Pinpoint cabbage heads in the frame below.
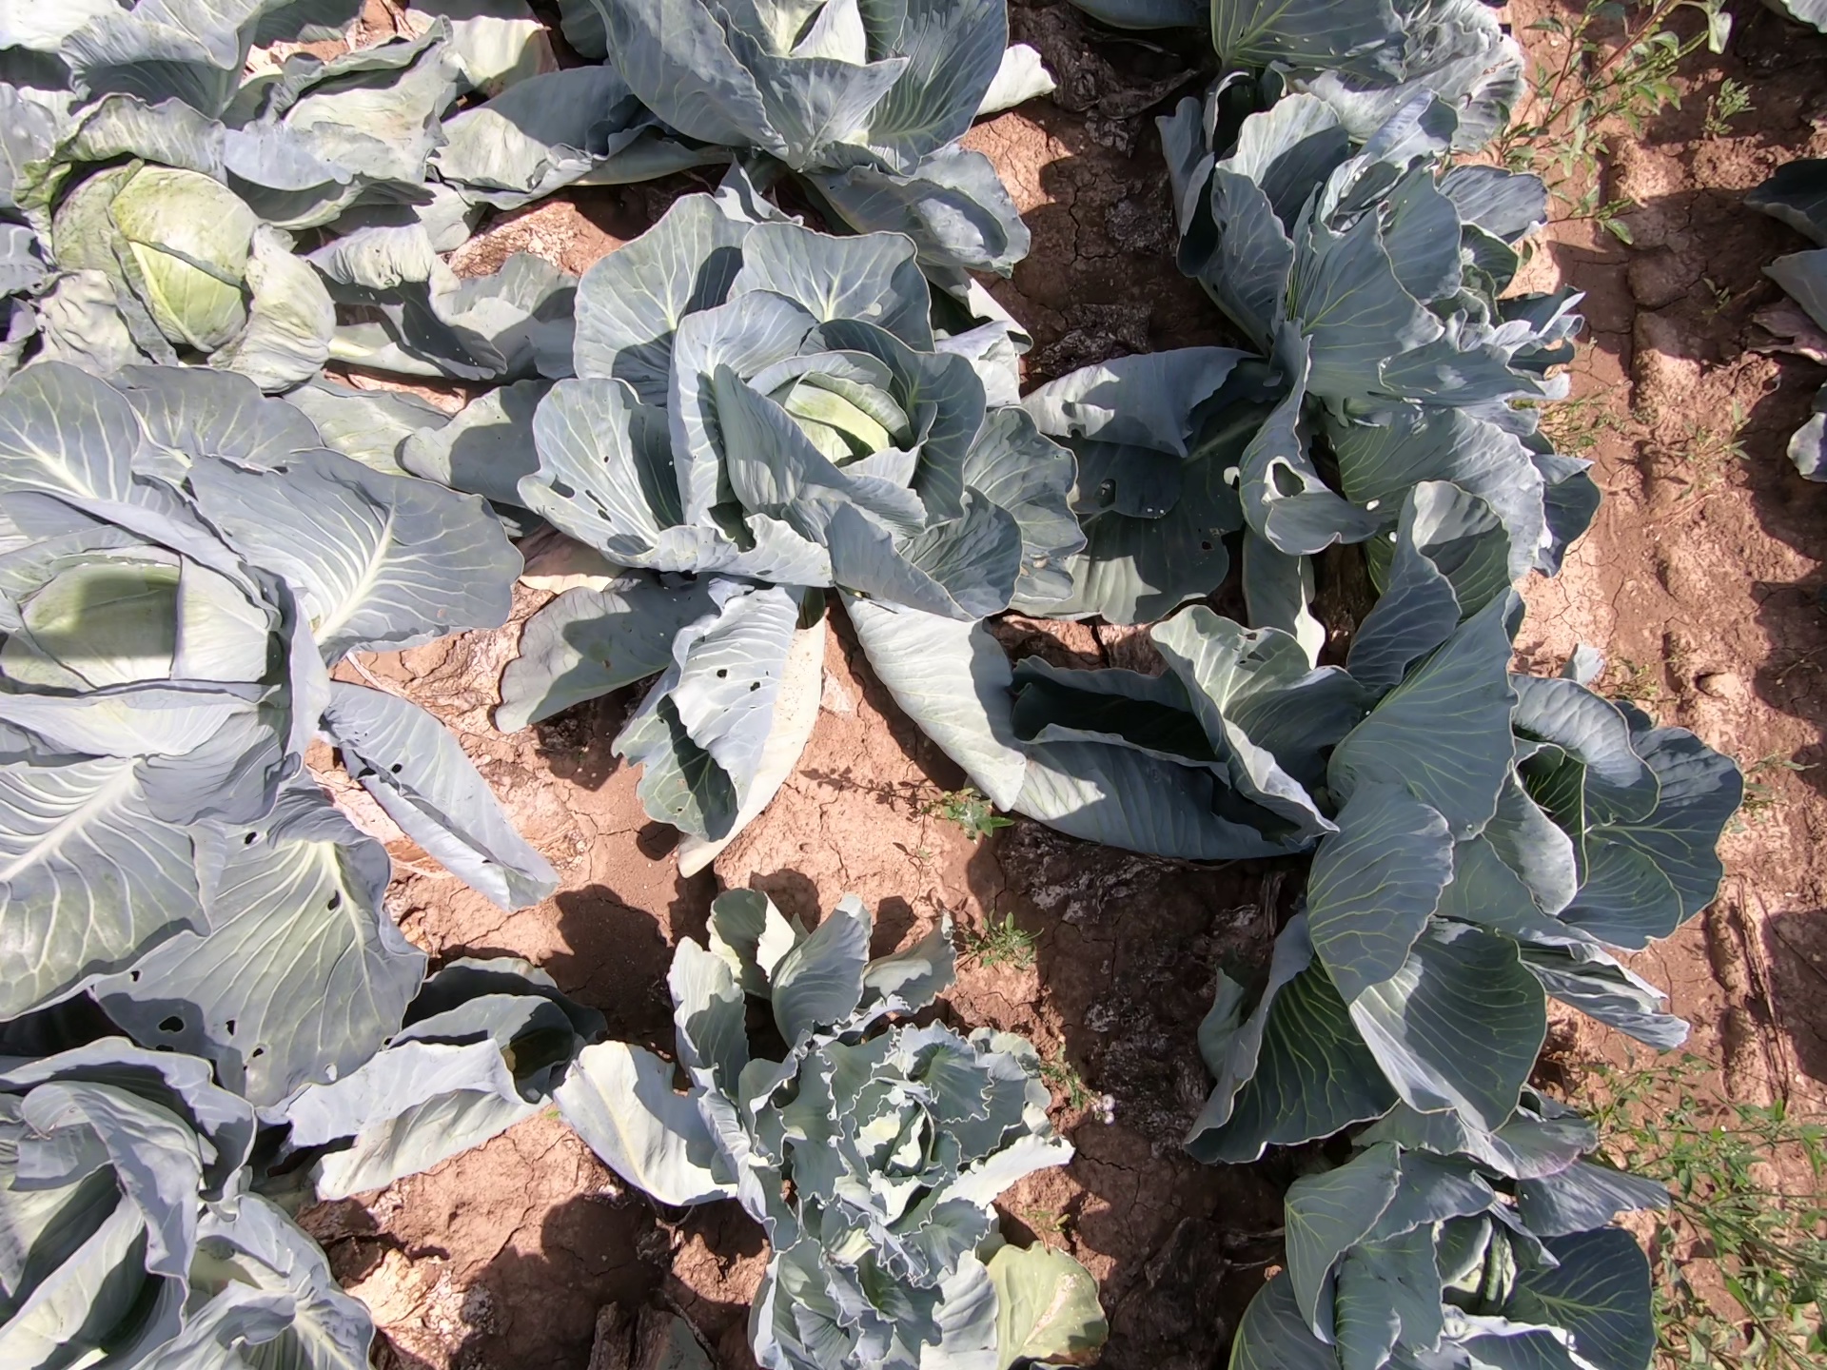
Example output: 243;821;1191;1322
1;540;272;749
2;1111;181;1368
713;5;868;150
1378;1185;1517;1329
45;162;269;353
737;365;904;524
803;1098;926;1235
